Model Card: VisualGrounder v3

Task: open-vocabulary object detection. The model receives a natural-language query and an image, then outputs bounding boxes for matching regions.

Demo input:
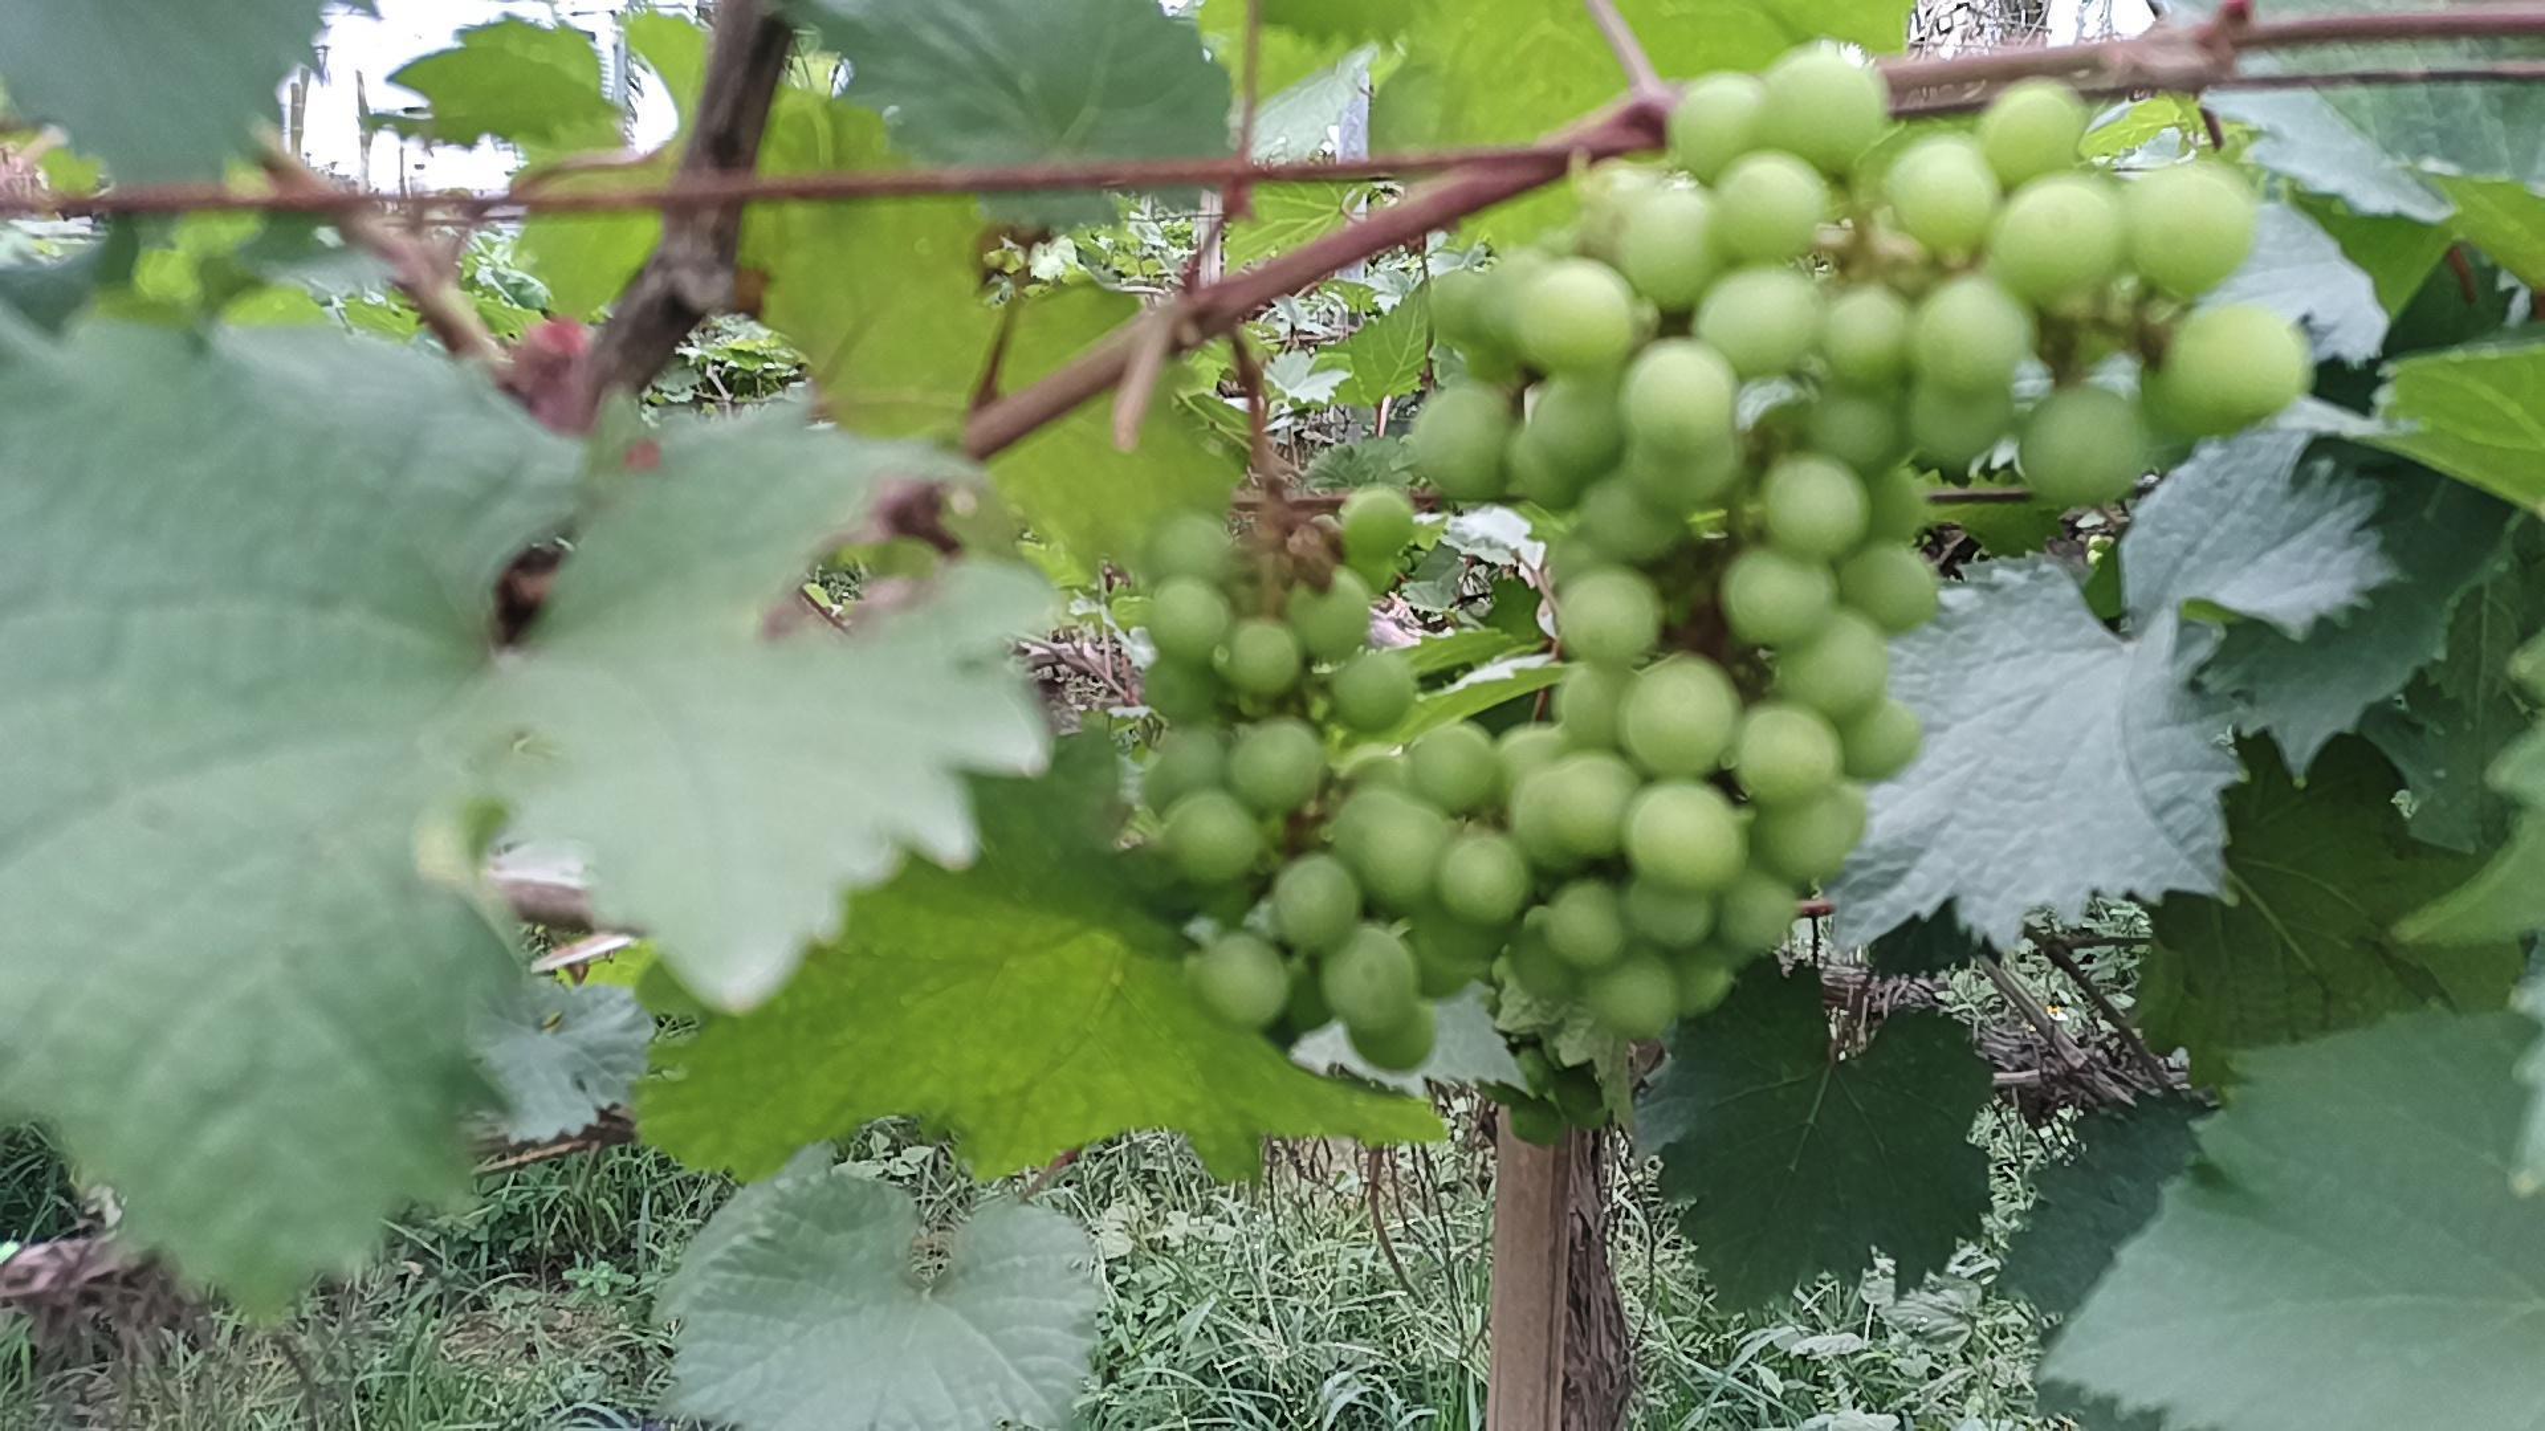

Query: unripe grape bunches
[1139,489,1477,1072]
[1336,50,2308,1037]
